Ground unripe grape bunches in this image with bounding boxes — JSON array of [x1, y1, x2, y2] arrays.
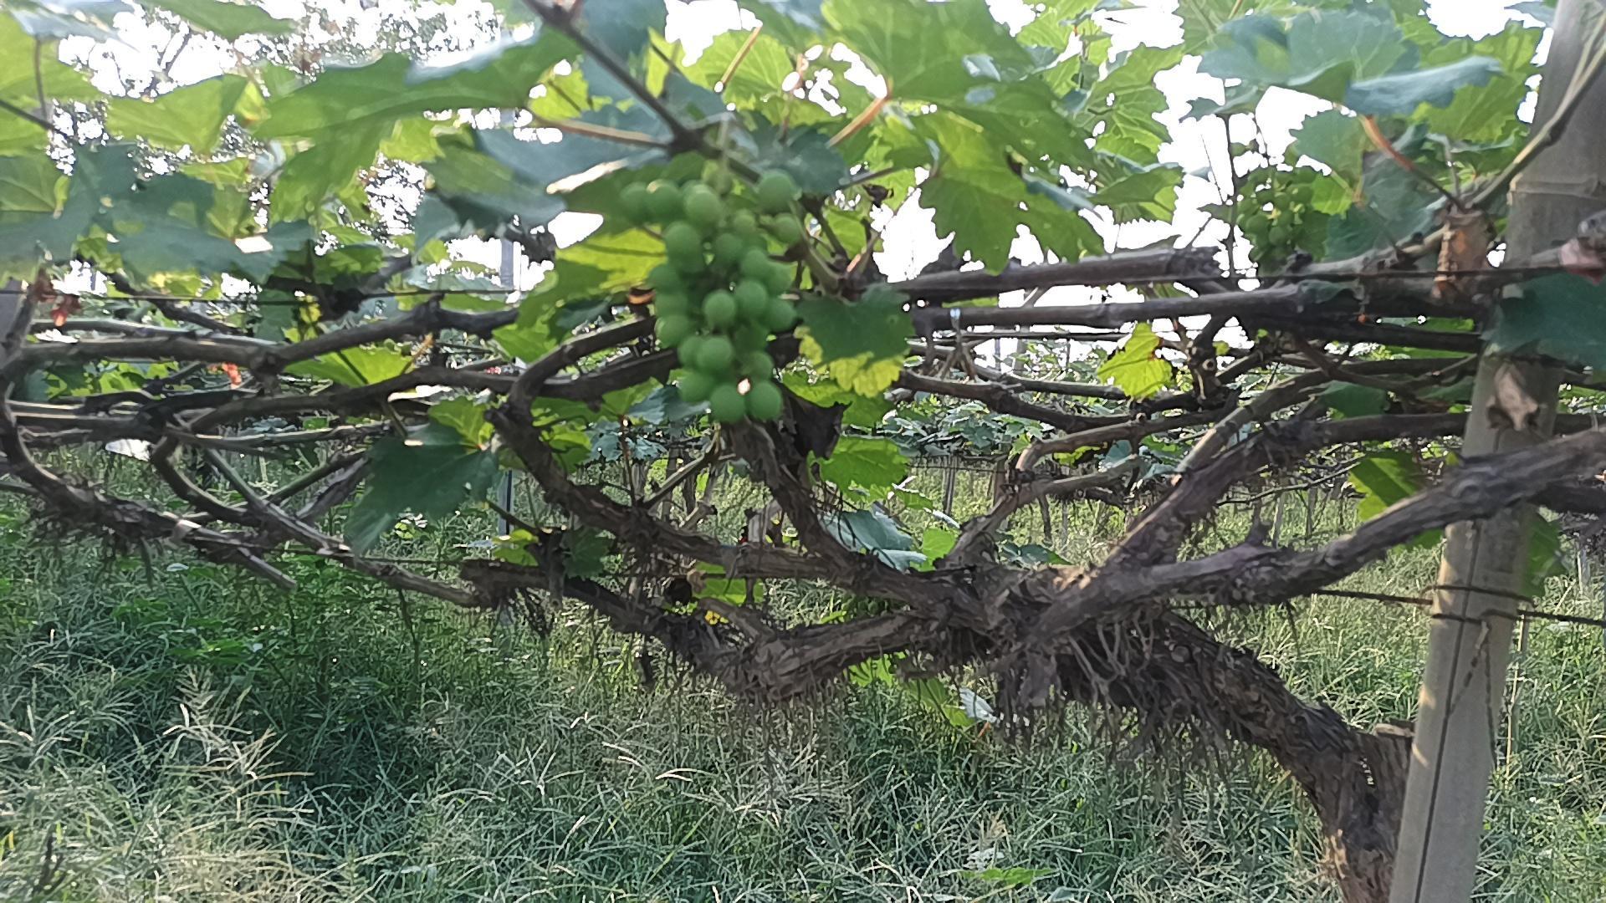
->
[[1229, 140, 1317, 260], [620, 159, 804, 422]]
